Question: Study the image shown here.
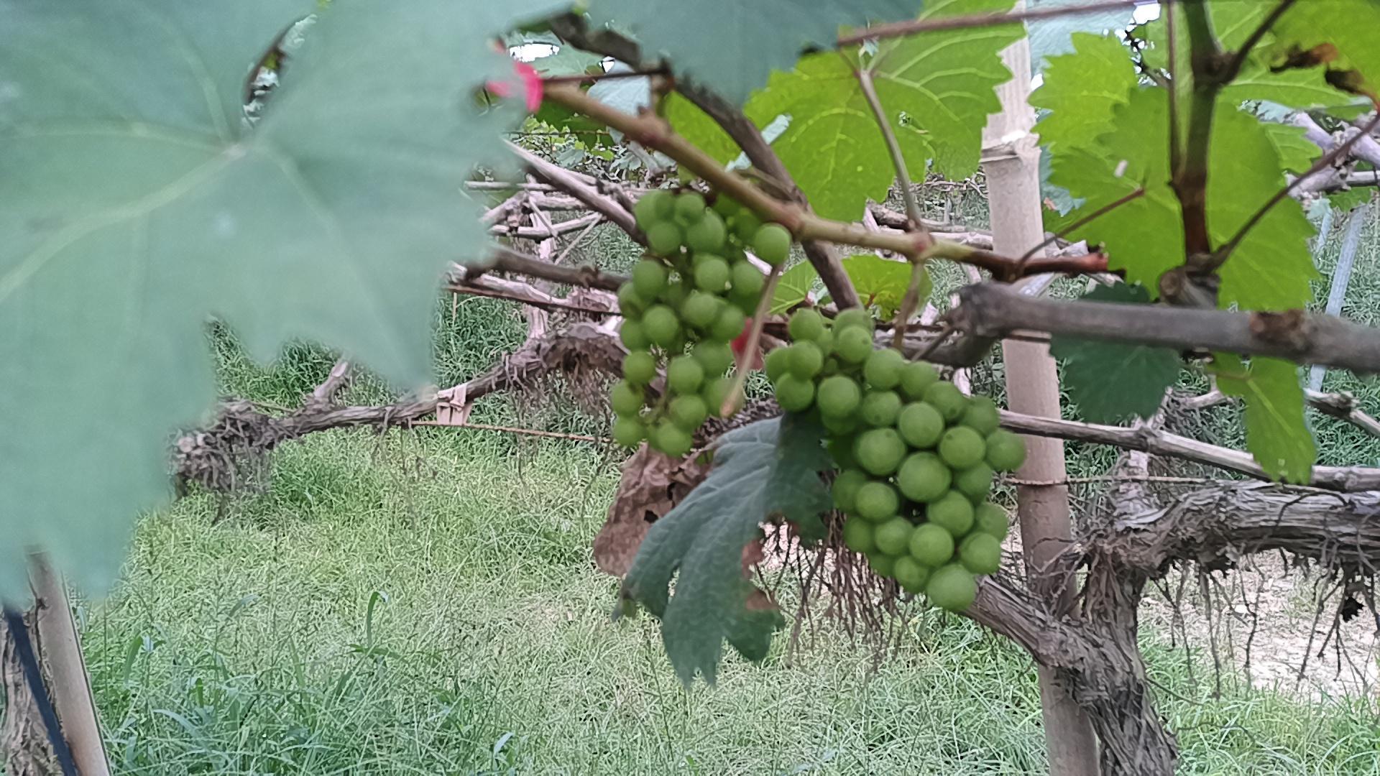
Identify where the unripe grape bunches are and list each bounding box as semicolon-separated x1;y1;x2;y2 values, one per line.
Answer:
766;309;1024;611
610;189;788;457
